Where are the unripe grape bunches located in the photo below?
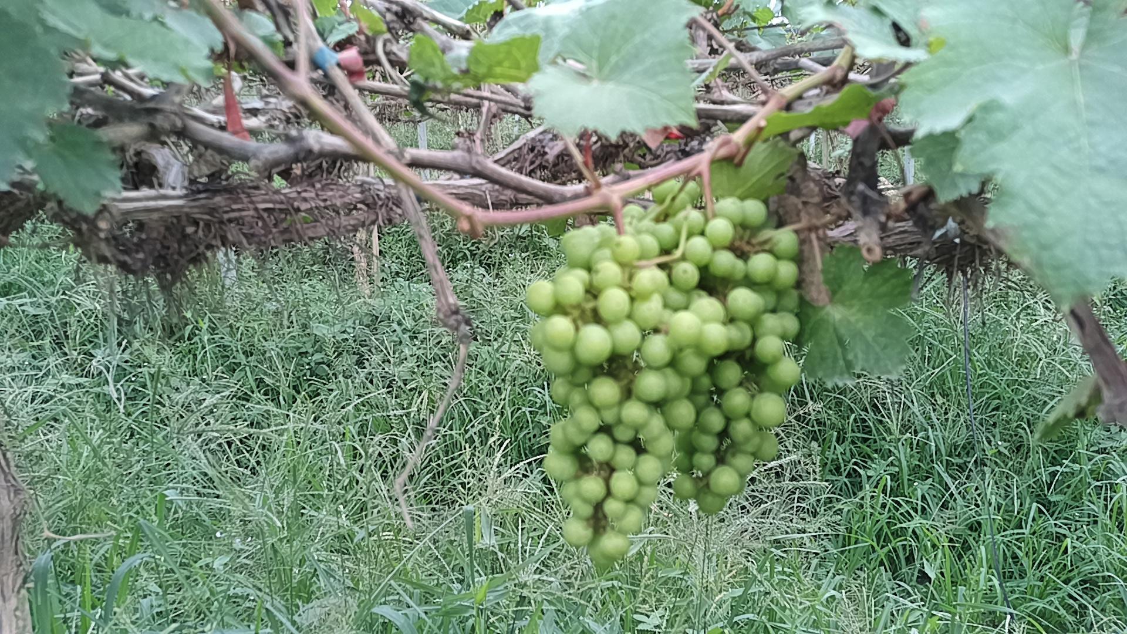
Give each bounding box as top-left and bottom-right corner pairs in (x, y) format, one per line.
(671, 198), (800, 514)
(623, 180), (699, 258)
(526, 225), (727, 566)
